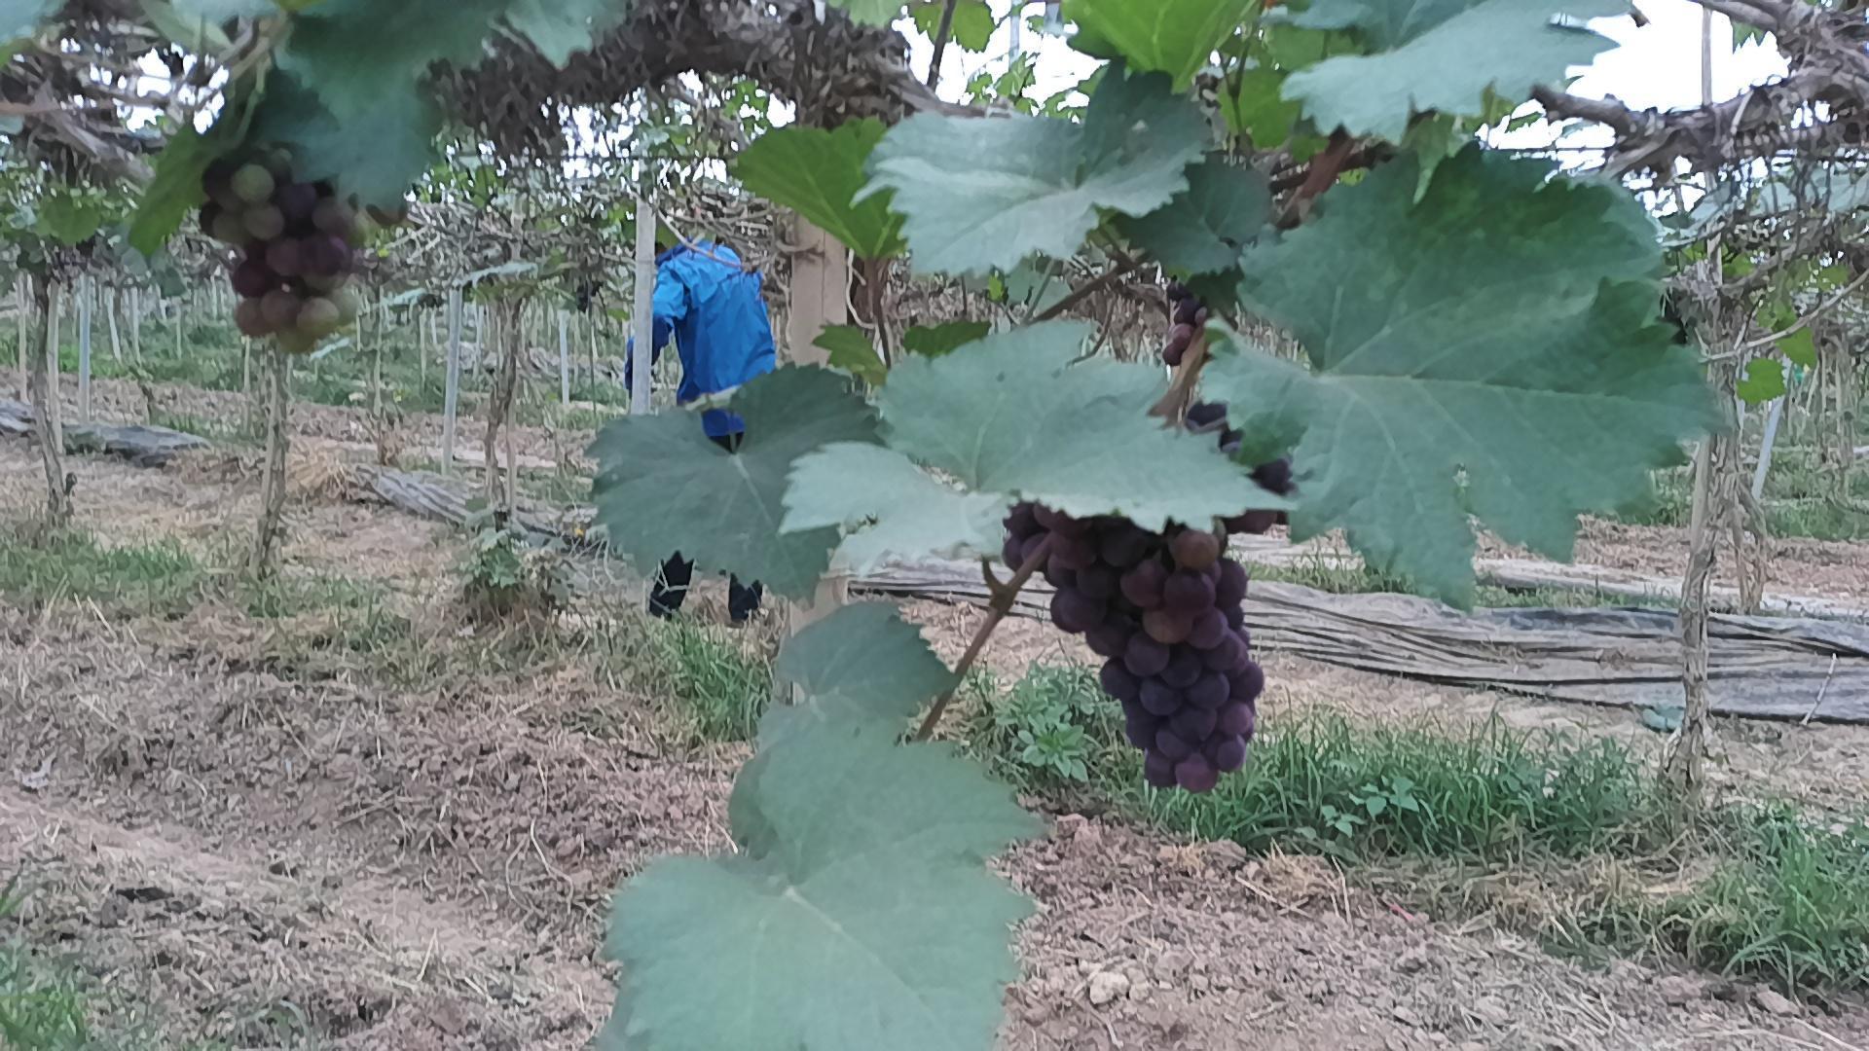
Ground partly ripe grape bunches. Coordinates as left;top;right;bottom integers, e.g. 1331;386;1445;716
200;152;378;352
1164;278;1292;530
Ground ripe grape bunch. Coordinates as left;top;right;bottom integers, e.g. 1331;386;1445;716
1003;503;1264;791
